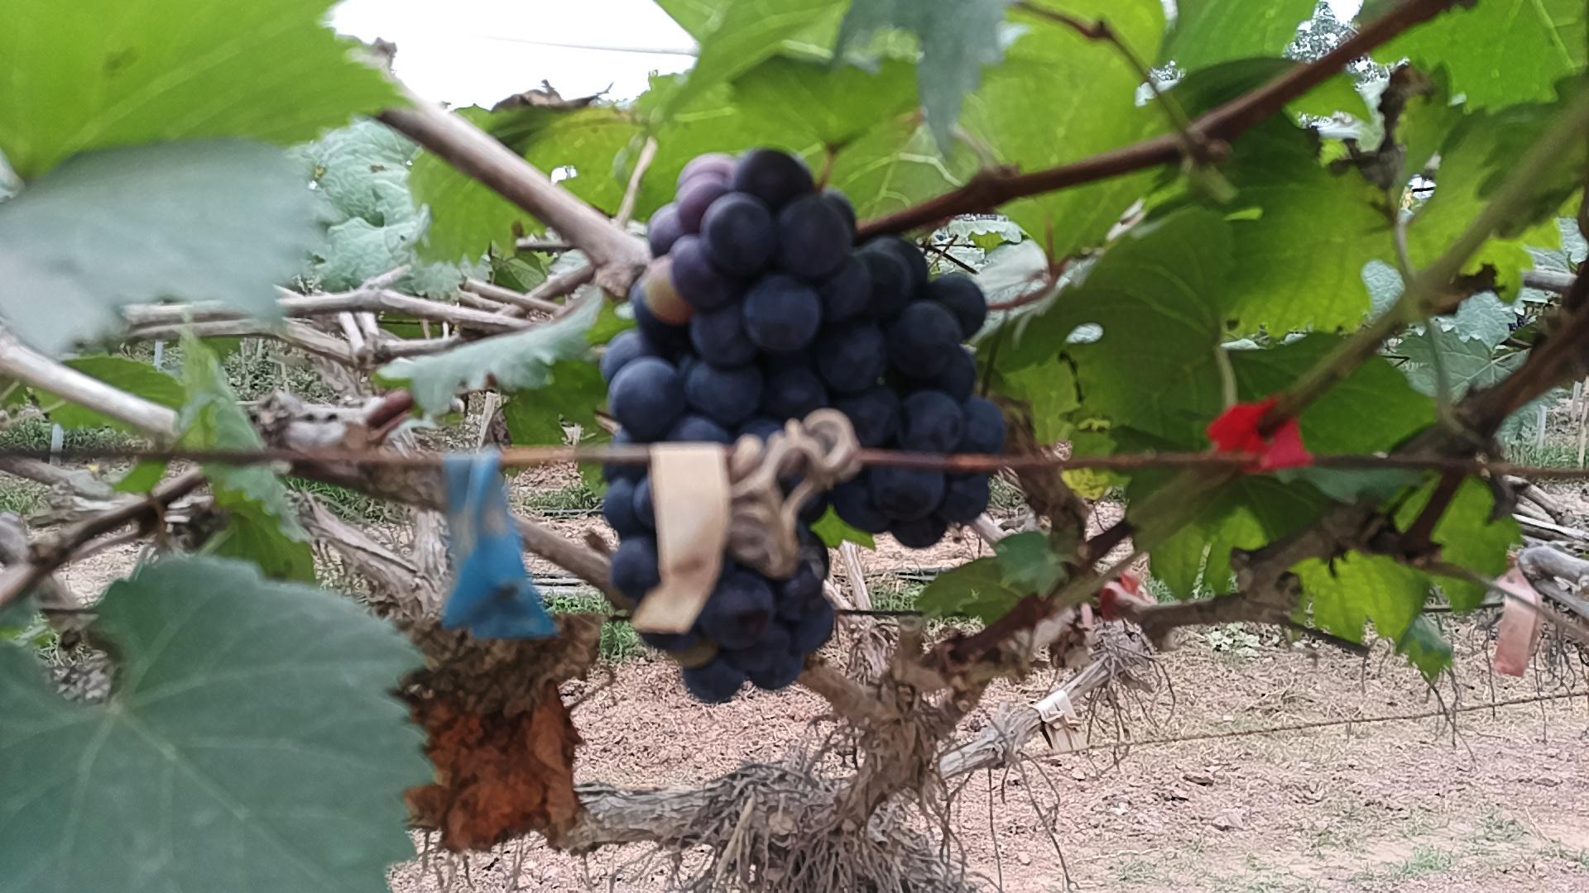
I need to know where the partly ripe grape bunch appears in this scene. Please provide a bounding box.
[601,148,1006,701]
